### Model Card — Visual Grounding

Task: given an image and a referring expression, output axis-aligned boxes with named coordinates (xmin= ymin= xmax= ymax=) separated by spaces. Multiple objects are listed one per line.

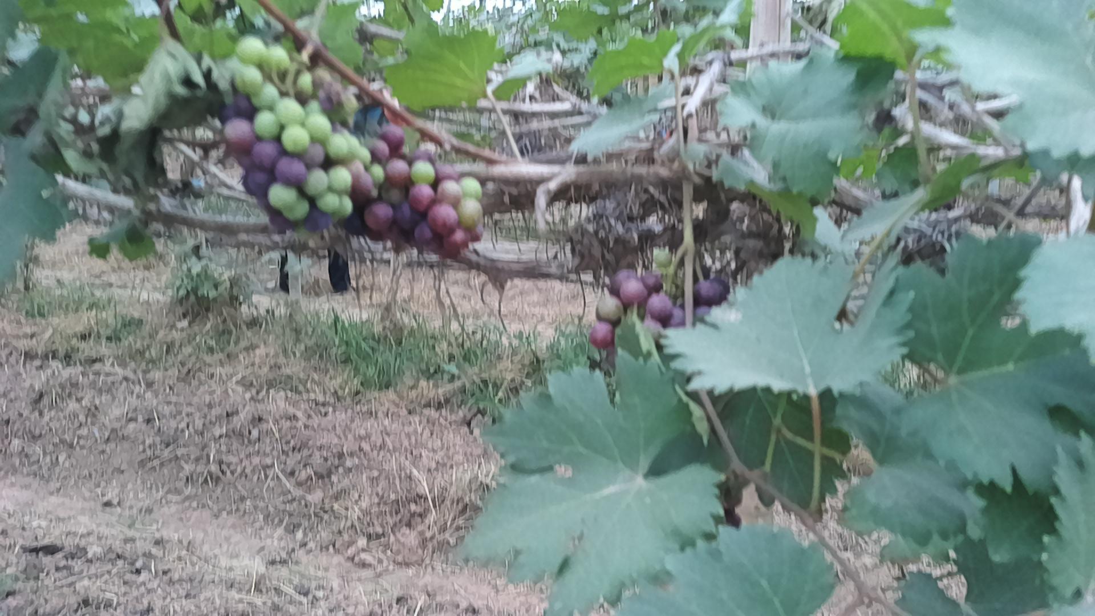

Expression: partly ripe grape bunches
xmin=344 ymin=124 xmax=482 ymax=258
xmin=223 ymin=37 xmax=390 ymax=232
xmin=589 ymin=250 xmax=729 ymax=349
